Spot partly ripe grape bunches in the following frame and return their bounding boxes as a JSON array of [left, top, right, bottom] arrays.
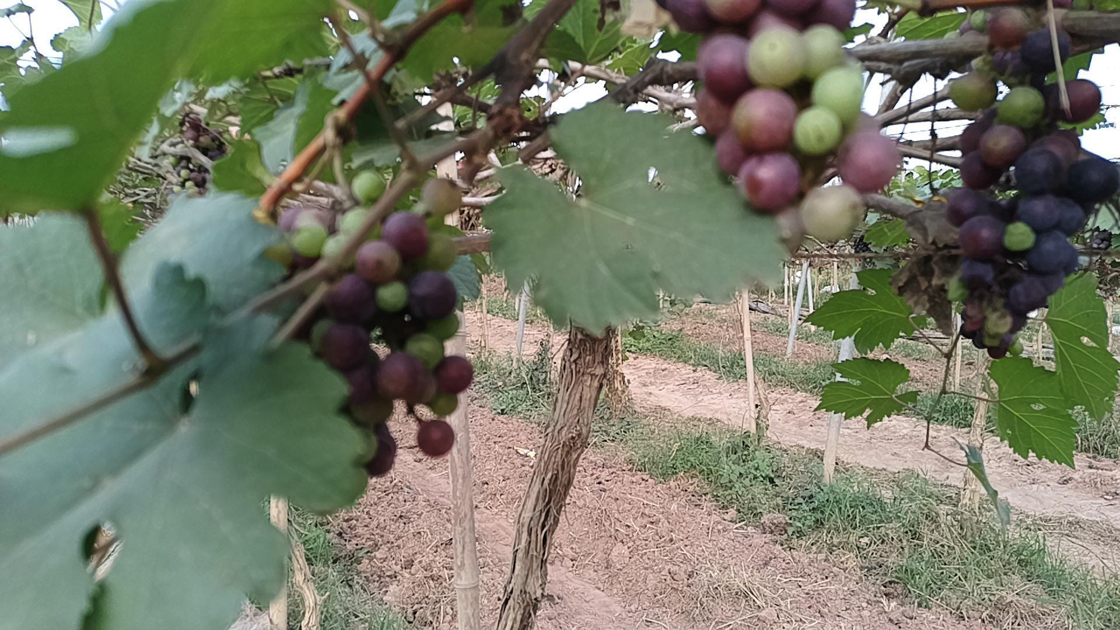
[[261, 169, 473, 475], [163, 111, 228, 197], [946, 0, 1119, 359], [657, 0, 901, 251]]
